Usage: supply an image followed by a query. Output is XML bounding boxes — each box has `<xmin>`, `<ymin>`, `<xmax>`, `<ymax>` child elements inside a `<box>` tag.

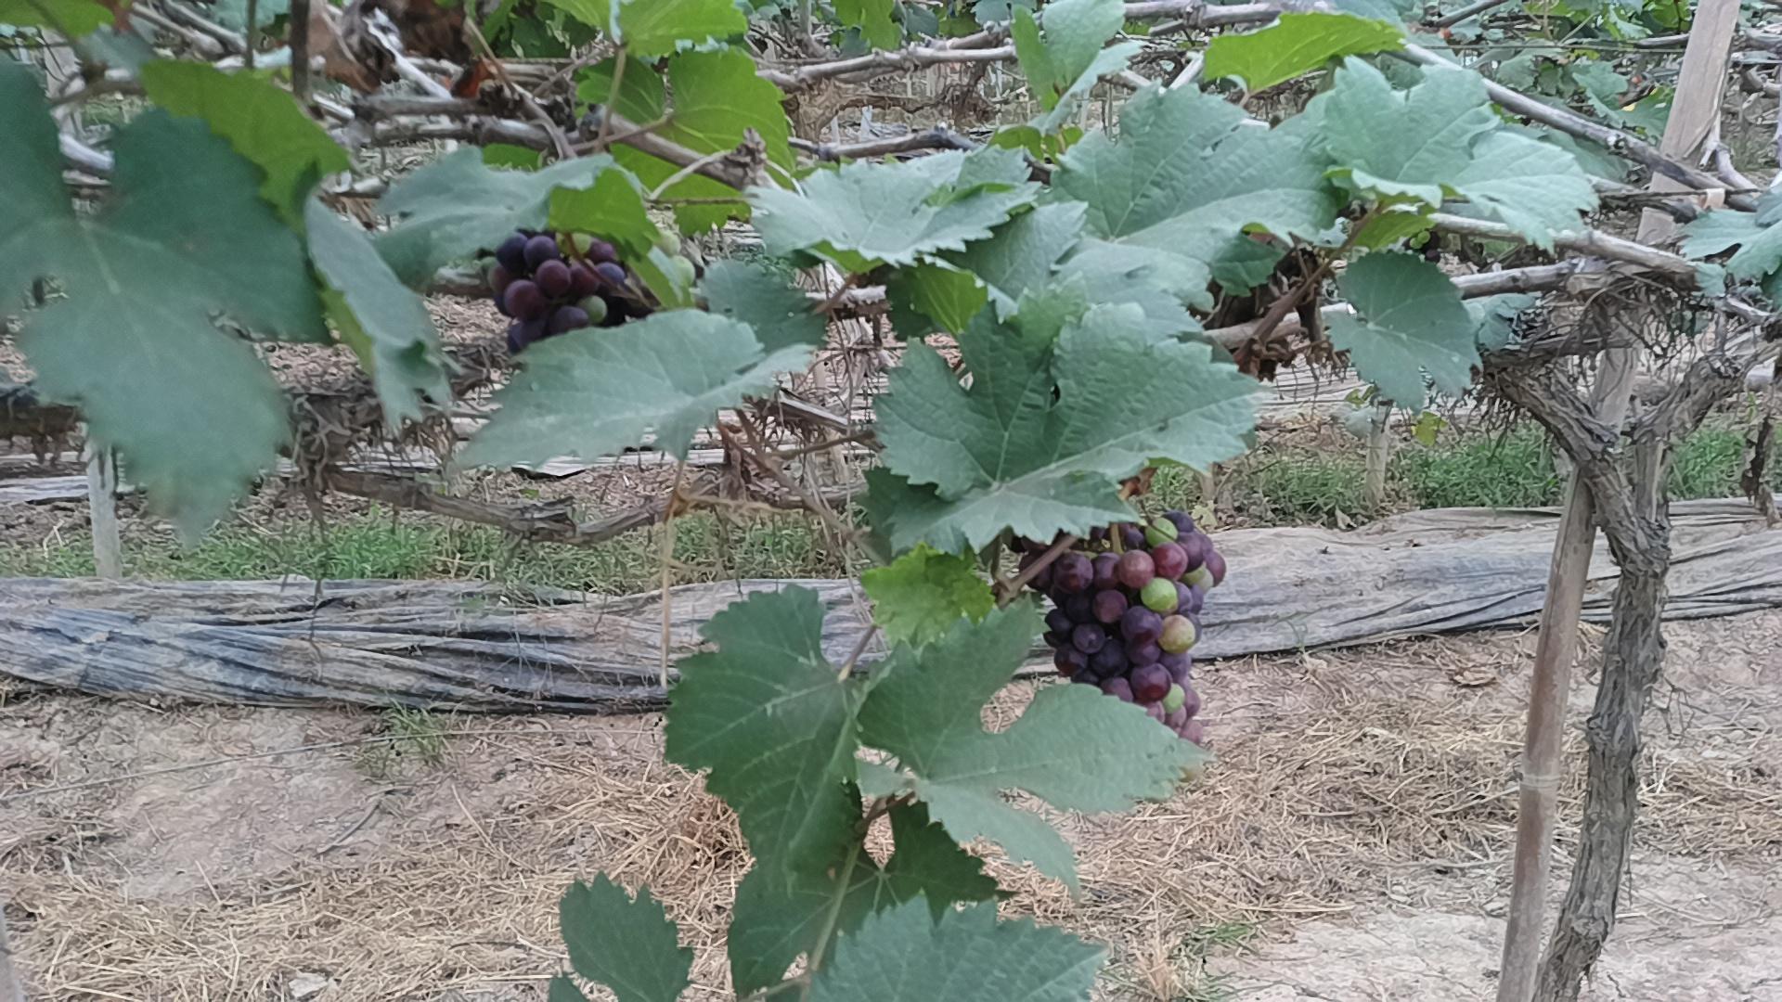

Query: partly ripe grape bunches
<box><xmin>487</xmin><ymin>228</ymin><xmax>660</xmax><ymax>353</ymax></box>
<box><xmin>1008</xmin><ymin>511</ymin><xmax>1225</xmax><ymax>742</ymax></box>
